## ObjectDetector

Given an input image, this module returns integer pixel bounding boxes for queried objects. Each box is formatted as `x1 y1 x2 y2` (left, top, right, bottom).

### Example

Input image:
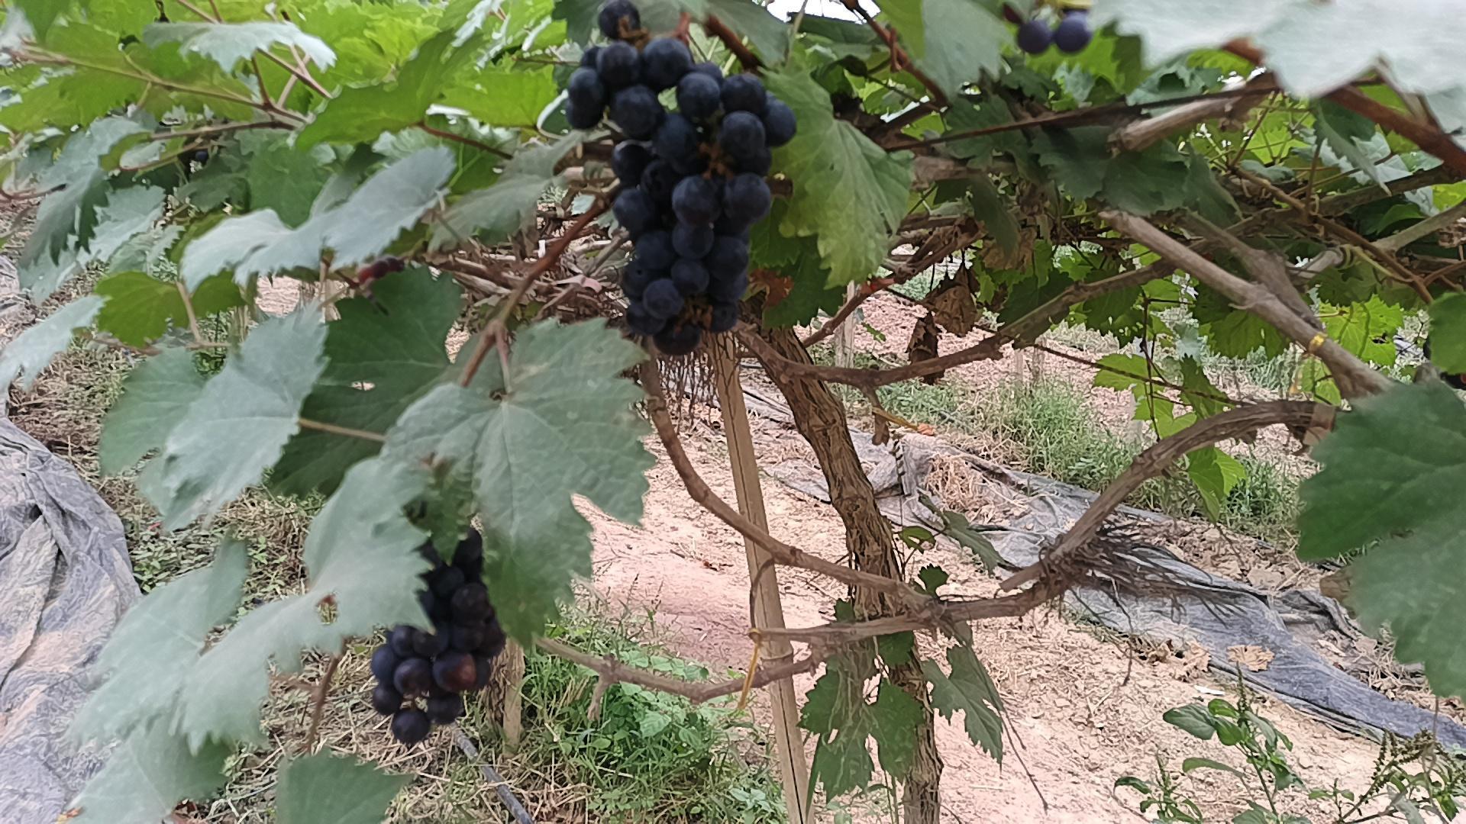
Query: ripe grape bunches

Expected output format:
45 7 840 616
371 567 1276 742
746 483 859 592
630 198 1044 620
370 527 505 745
565 0 796 355
1016 9 1093 54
